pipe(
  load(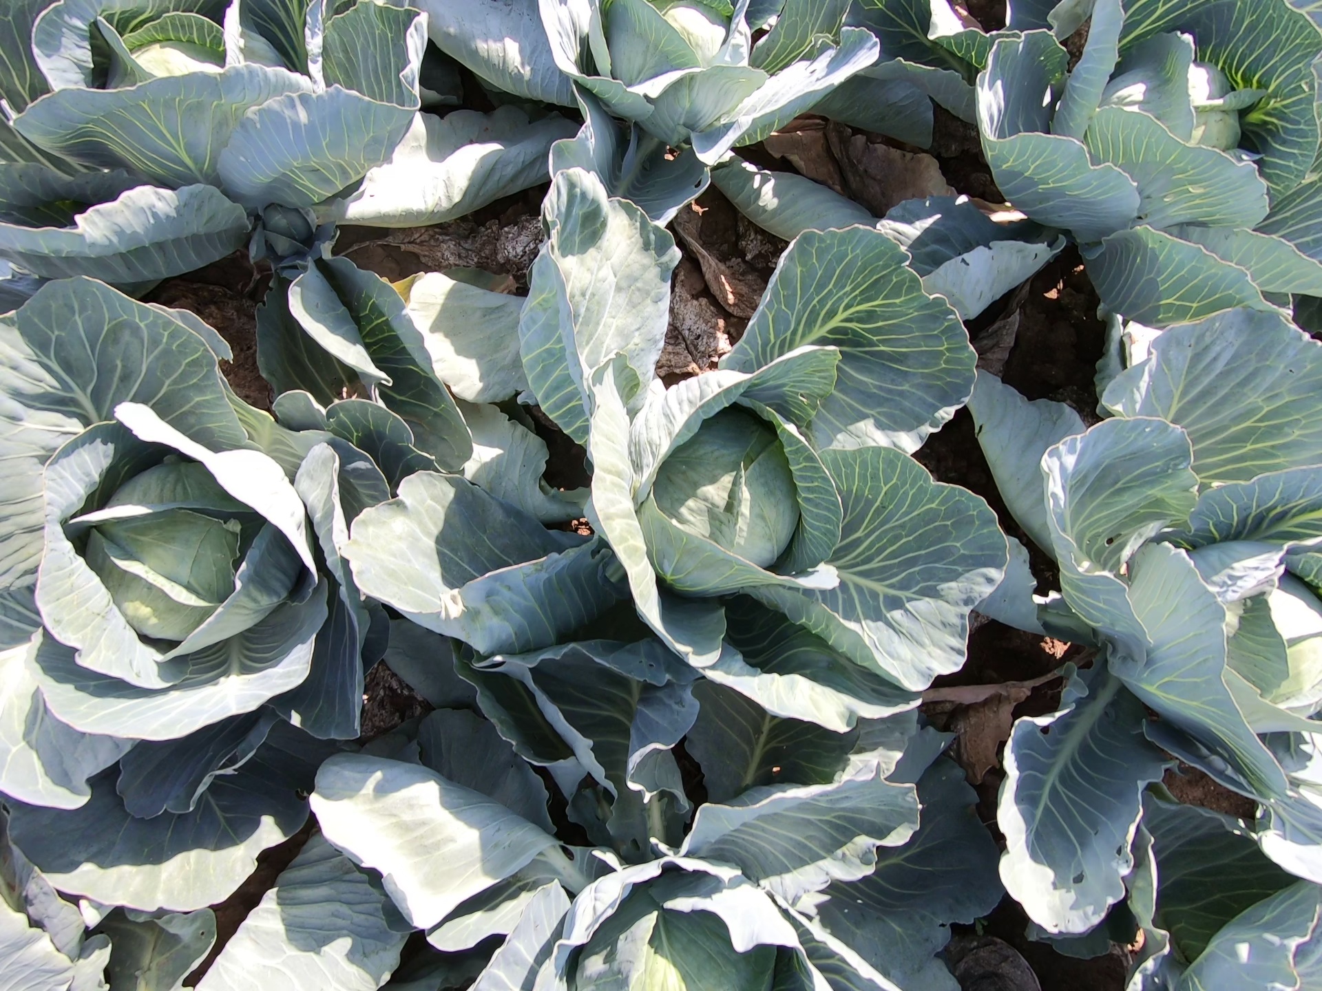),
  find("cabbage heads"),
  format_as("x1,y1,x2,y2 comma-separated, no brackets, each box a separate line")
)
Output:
1091,63,1237,189
636,401,804,583
608,1,748,110
1155,570,1319,736
104,28,300,180
85,462,295,631
576,873,773,990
